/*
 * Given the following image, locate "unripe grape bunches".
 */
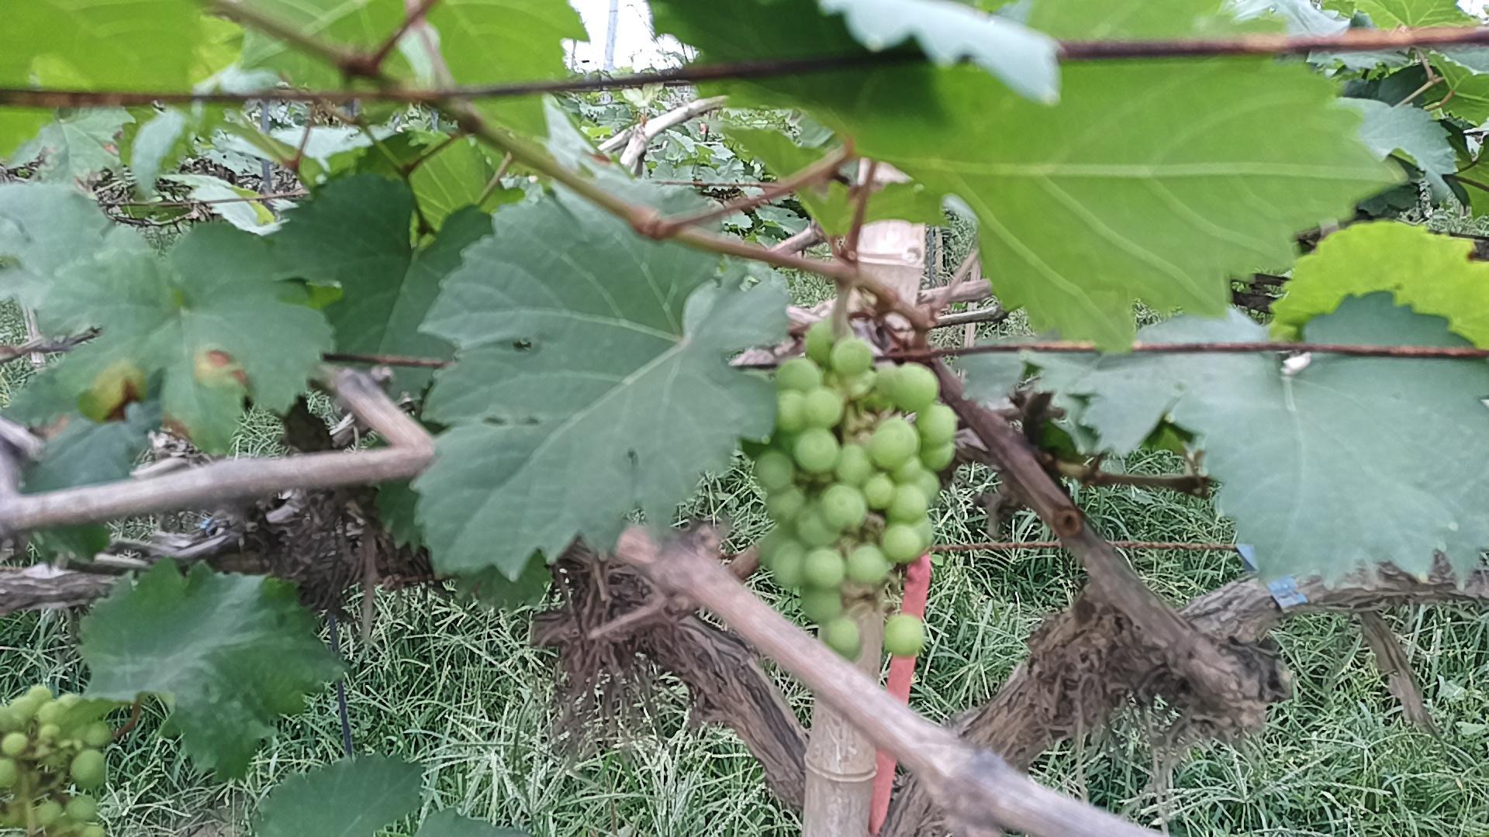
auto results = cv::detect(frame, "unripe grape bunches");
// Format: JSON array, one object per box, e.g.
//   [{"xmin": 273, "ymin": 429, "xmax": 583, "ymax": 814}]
[
  {"xmin": 754, "ymin": 315, "xmax": 959, "ymax": 660},
  {"xmin": 0, "ymin": 684, "xmax": 112, "ymax": 836}
]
